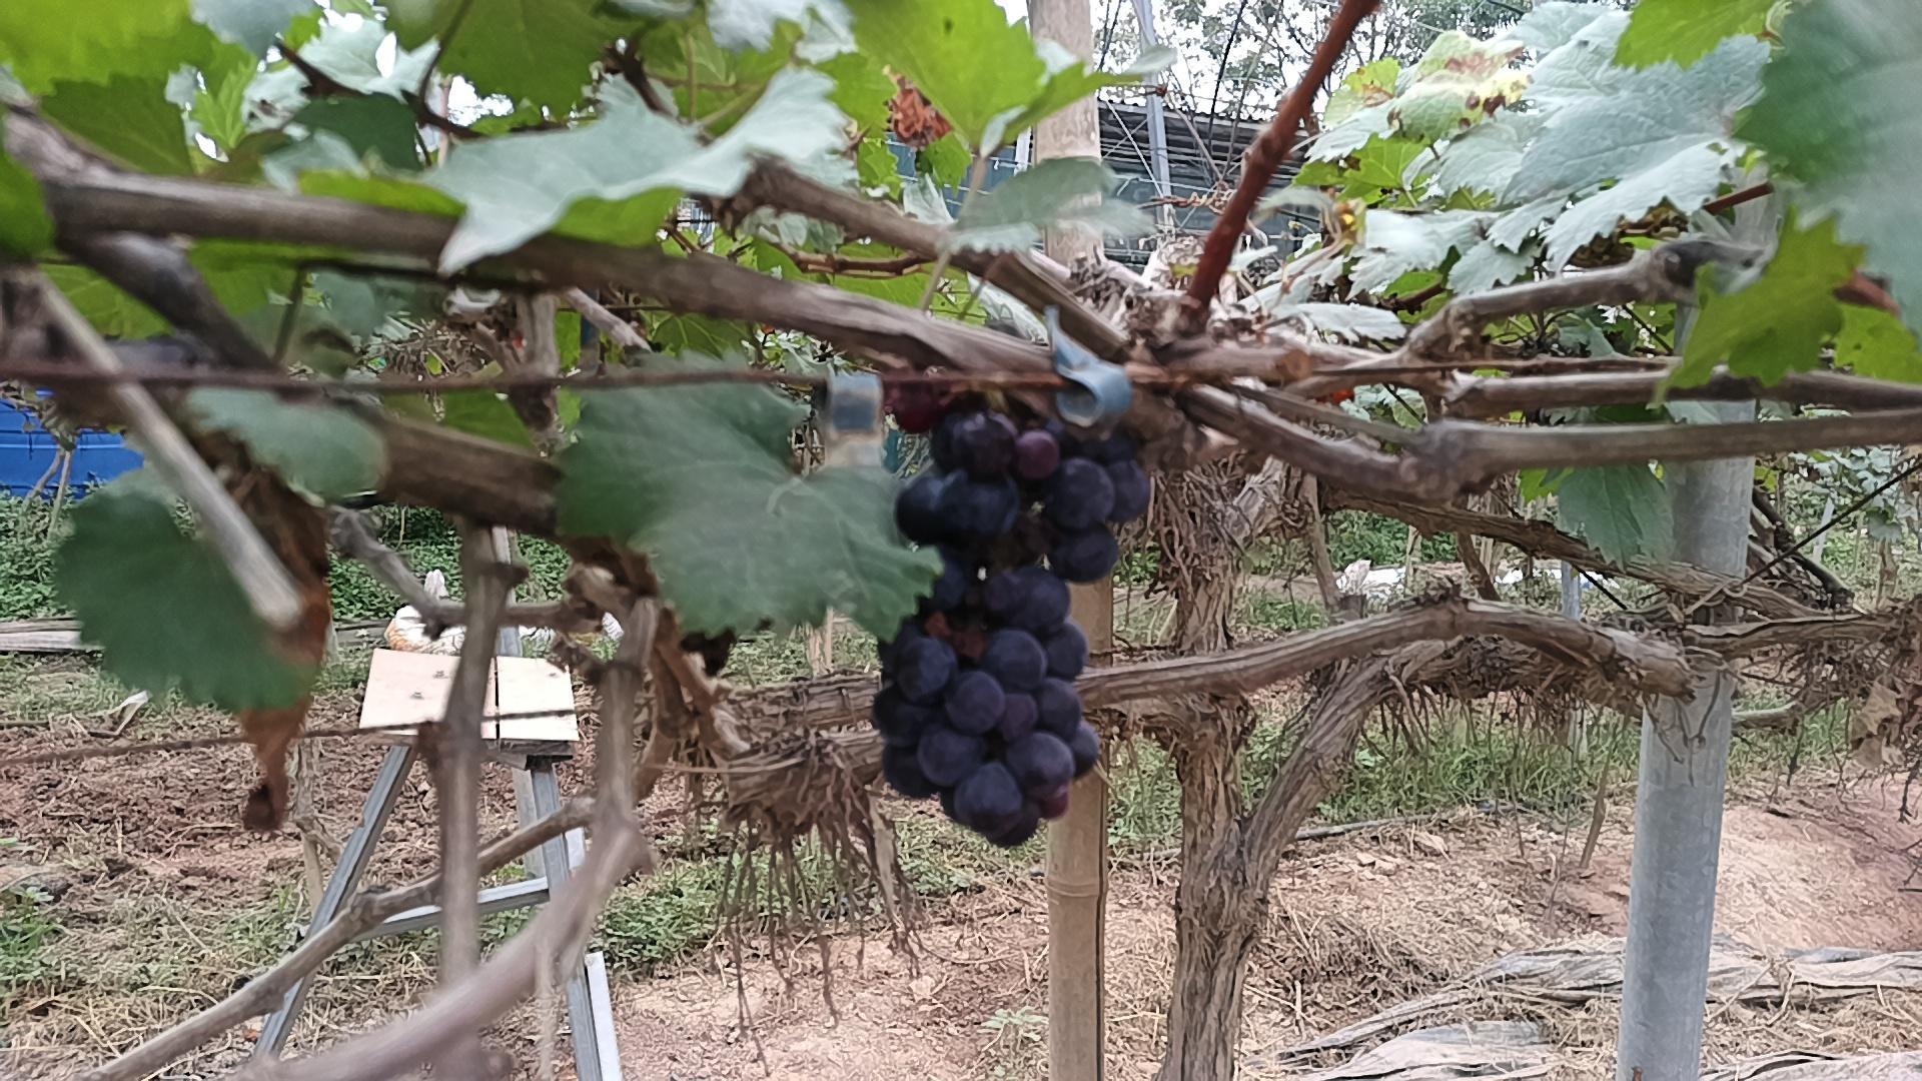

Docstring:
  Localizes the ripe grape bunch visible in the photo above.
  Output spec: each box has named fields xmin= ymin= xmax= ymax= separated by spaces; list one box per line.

xmin=873 ymin=398 xmax=1149 ymax=846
